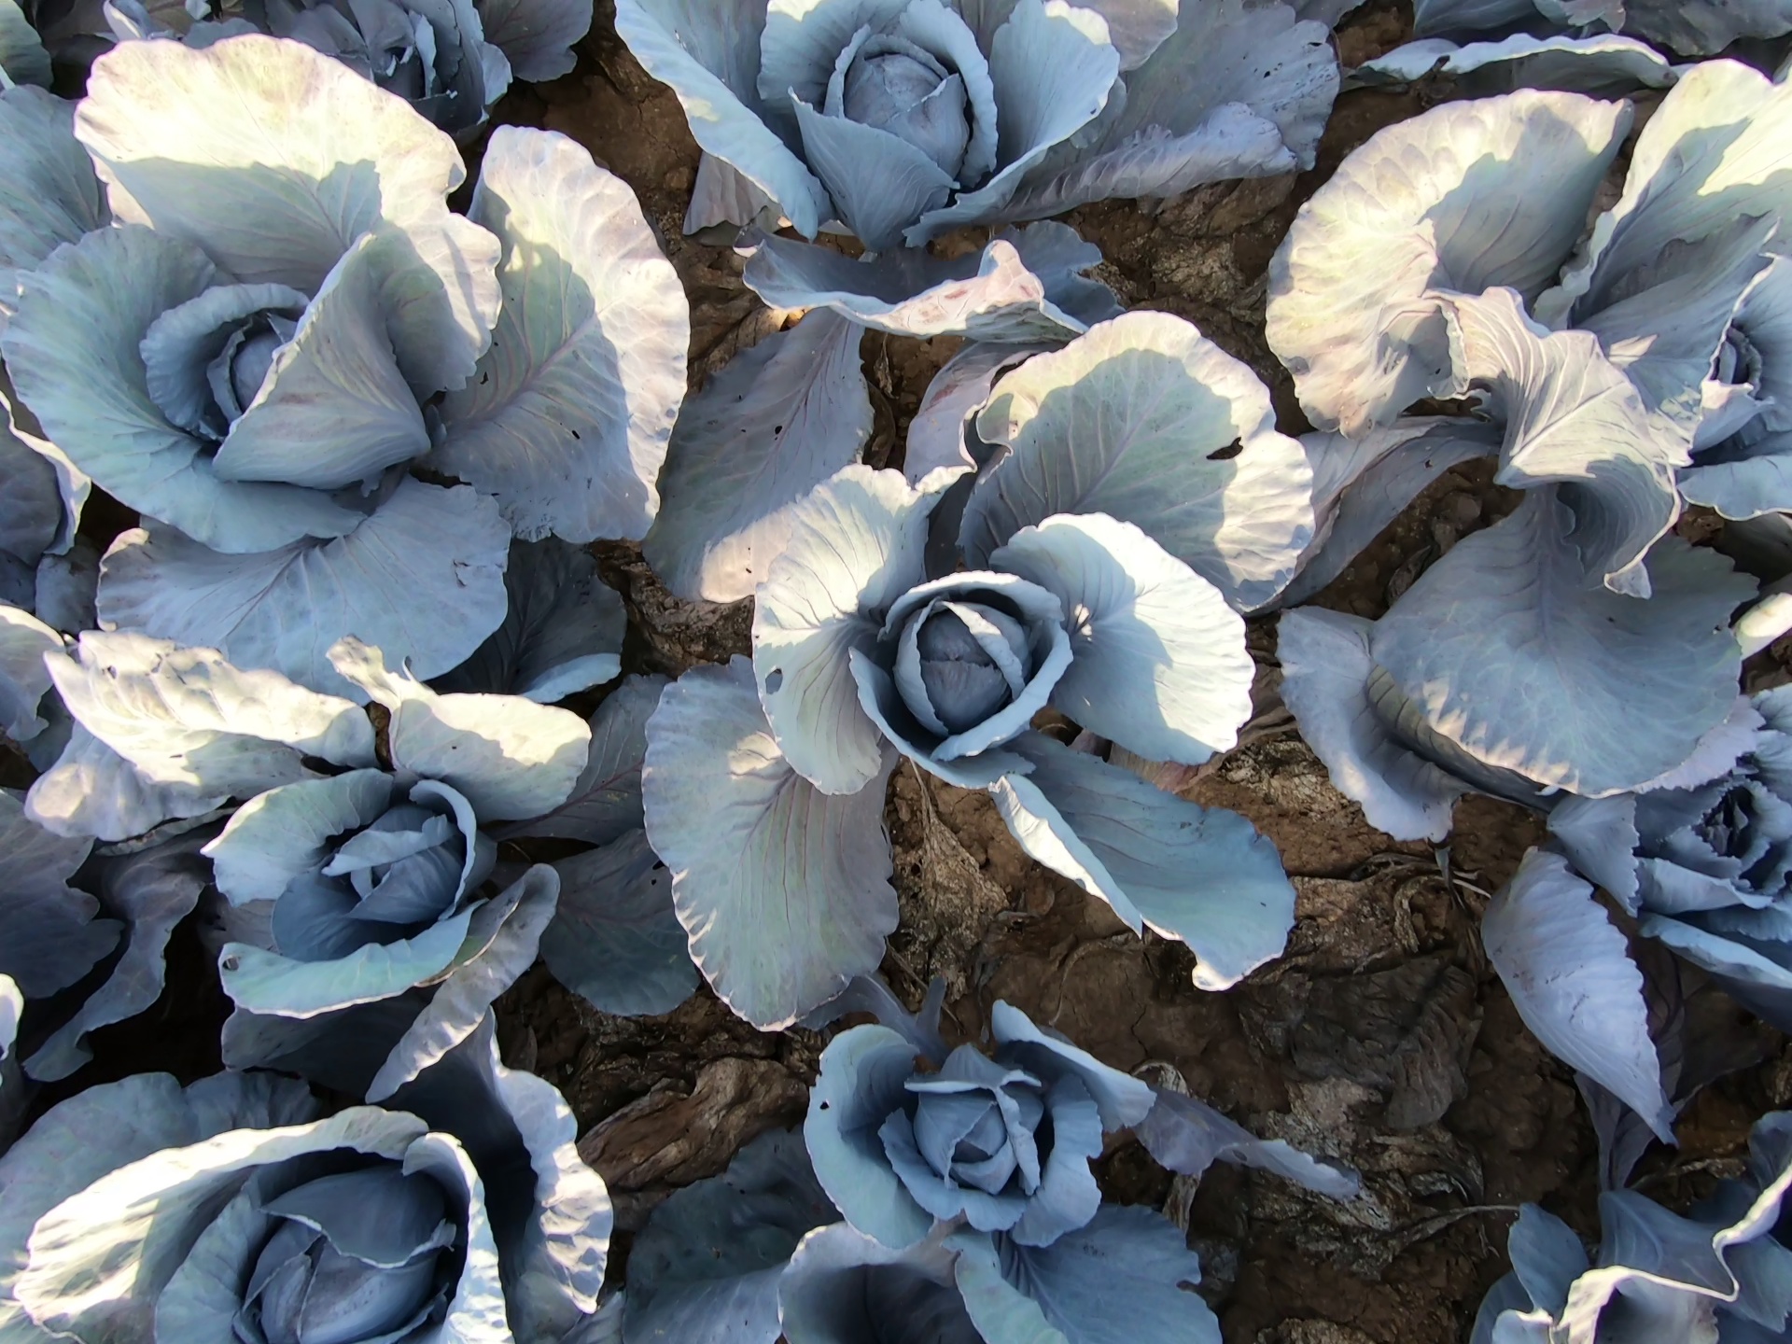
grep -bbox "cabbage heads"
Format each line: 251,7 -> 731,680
259,1187 -> 440,1337
835,49 -> 963,192
224,333 -> 355,448
263,2 -> 419,115
927,1085 -> 1019,1188
908,602 -> 1019,724
353,816 -> 459,917
1618,786 -> 1737,887
1619,325 -> 1734,444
